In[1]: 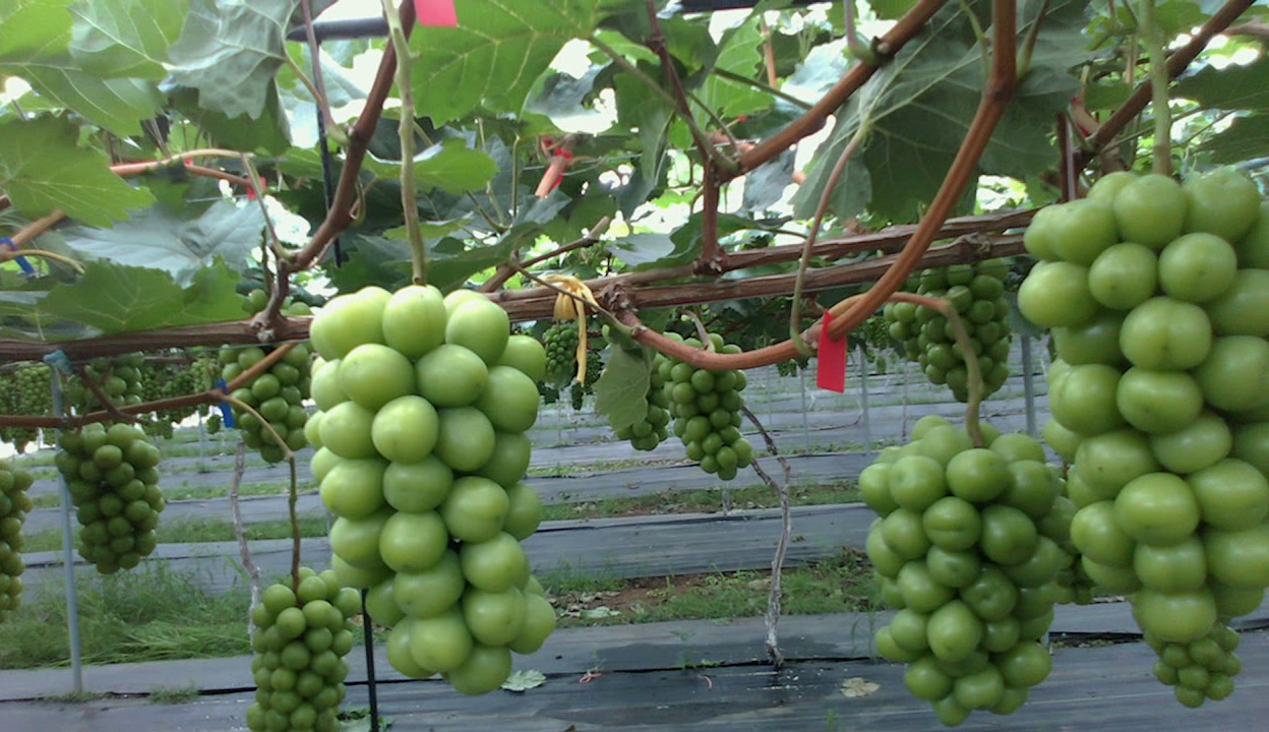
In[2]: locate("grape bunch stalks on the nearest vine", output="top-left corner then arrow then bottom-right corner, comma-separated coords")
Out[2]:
1140,1 -> 1171,169
828,291 -> 985,441
381,1 -> 427,282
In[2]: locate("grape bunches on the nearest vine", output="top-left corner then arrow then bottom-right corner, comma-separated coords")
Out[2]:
859,415 -> 1071,727
1017,169 -> 1268,644
307,283 -> 556,696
